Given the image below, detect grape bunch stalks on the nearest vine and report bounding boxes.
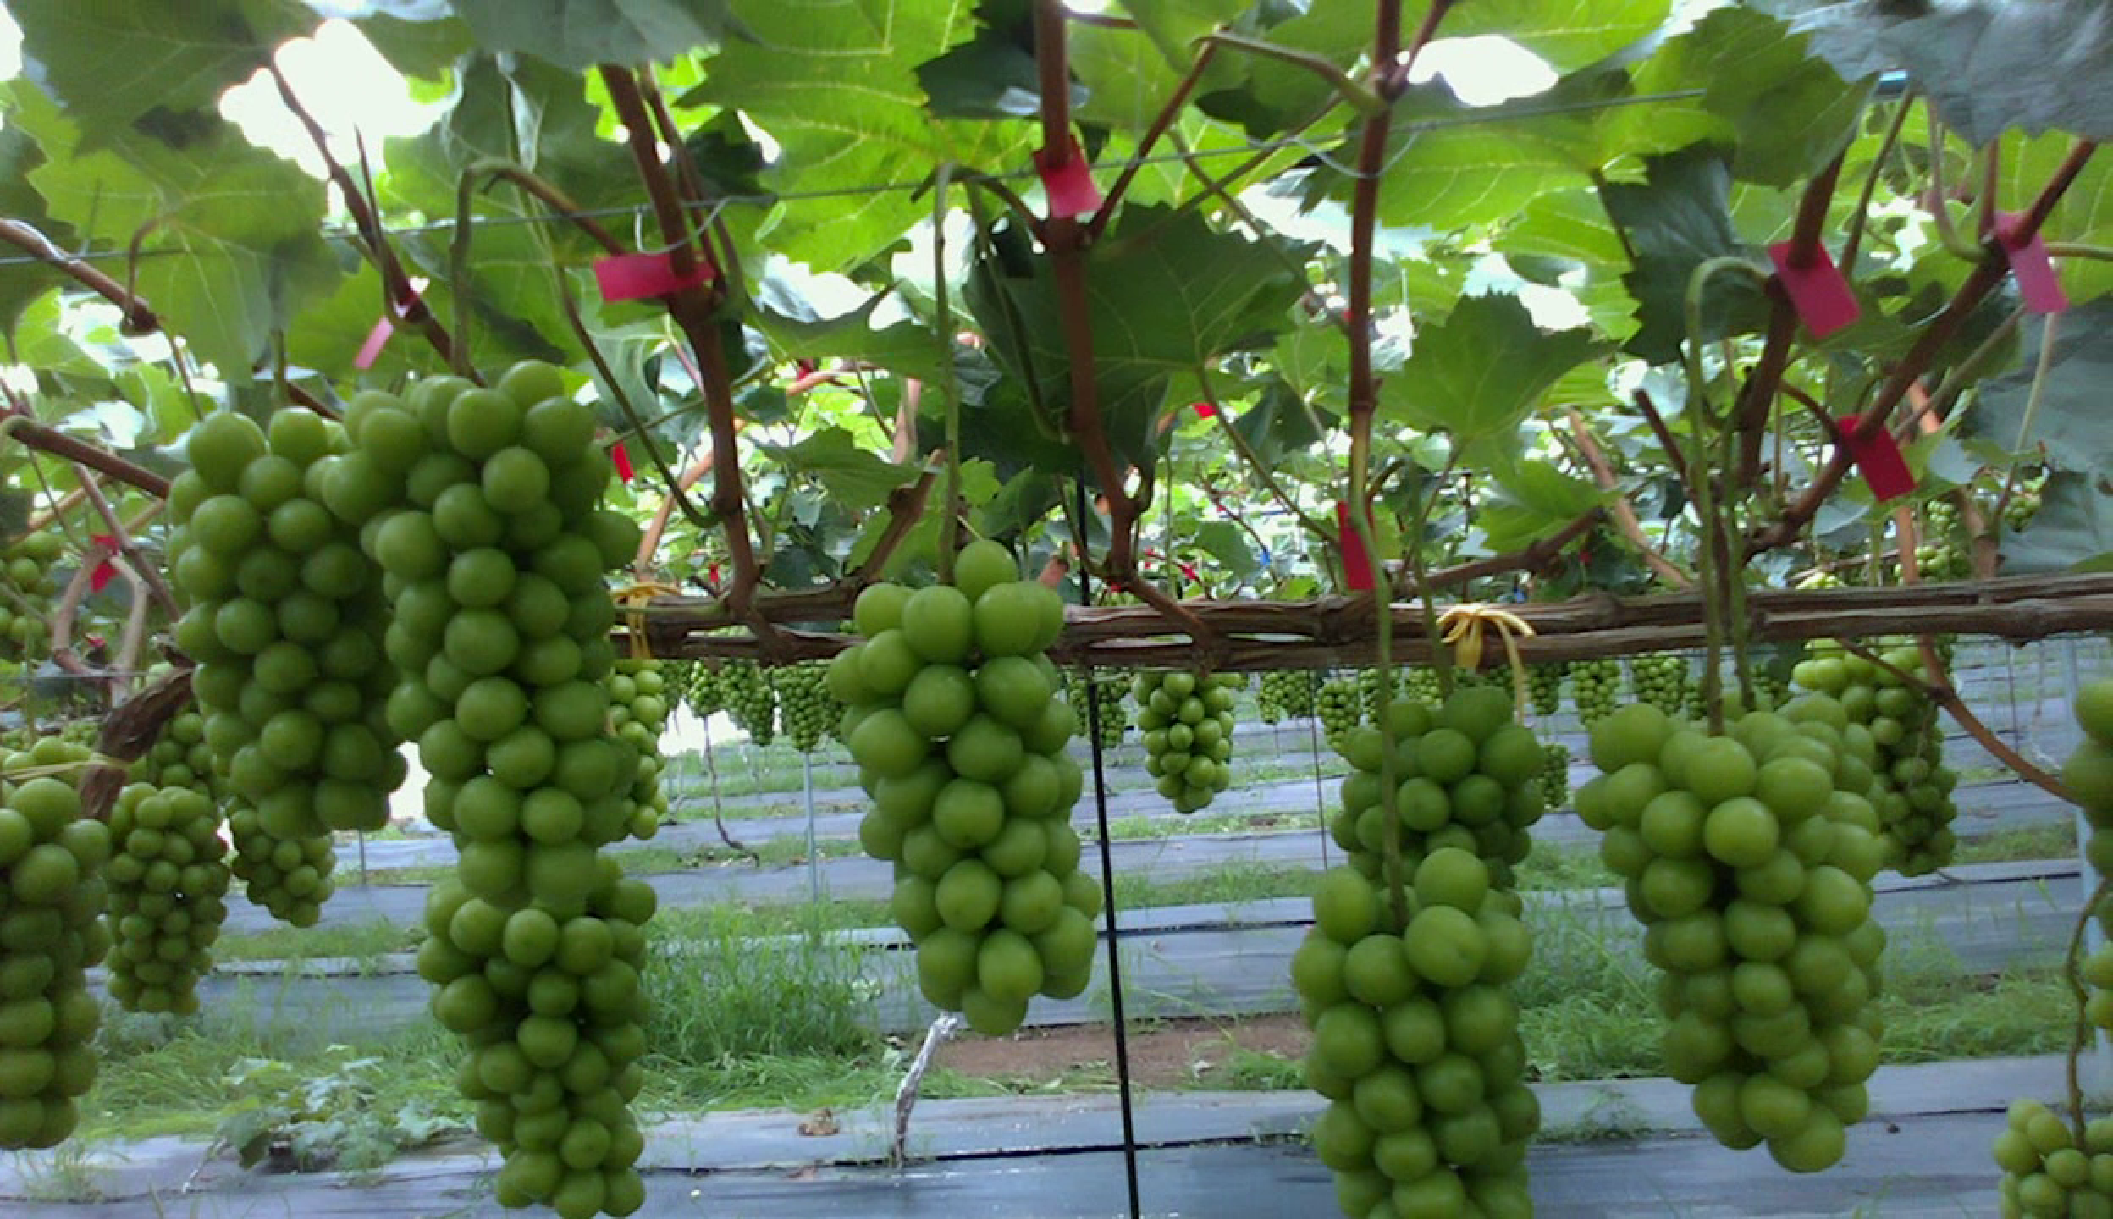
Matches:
[268,330,286,406]
[2062,875,2110,1153]
[1346,427,1409,926]
[1686,254,1764,731]
[447,159,628,374]
[918,161,1038,582]
[1371,457,1451,696]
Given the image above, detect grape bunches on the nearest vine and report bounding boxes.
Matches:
[322,362,642,913]
[1294,845,1542,1217]
[413,852,657,1217]
[1993,1097,2111,1217]
[0,774,112,1150]
[828,533,1104,1038]
[168,405,406,838]
[1578,703,1888,1175]
[1332,691,1542,896]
